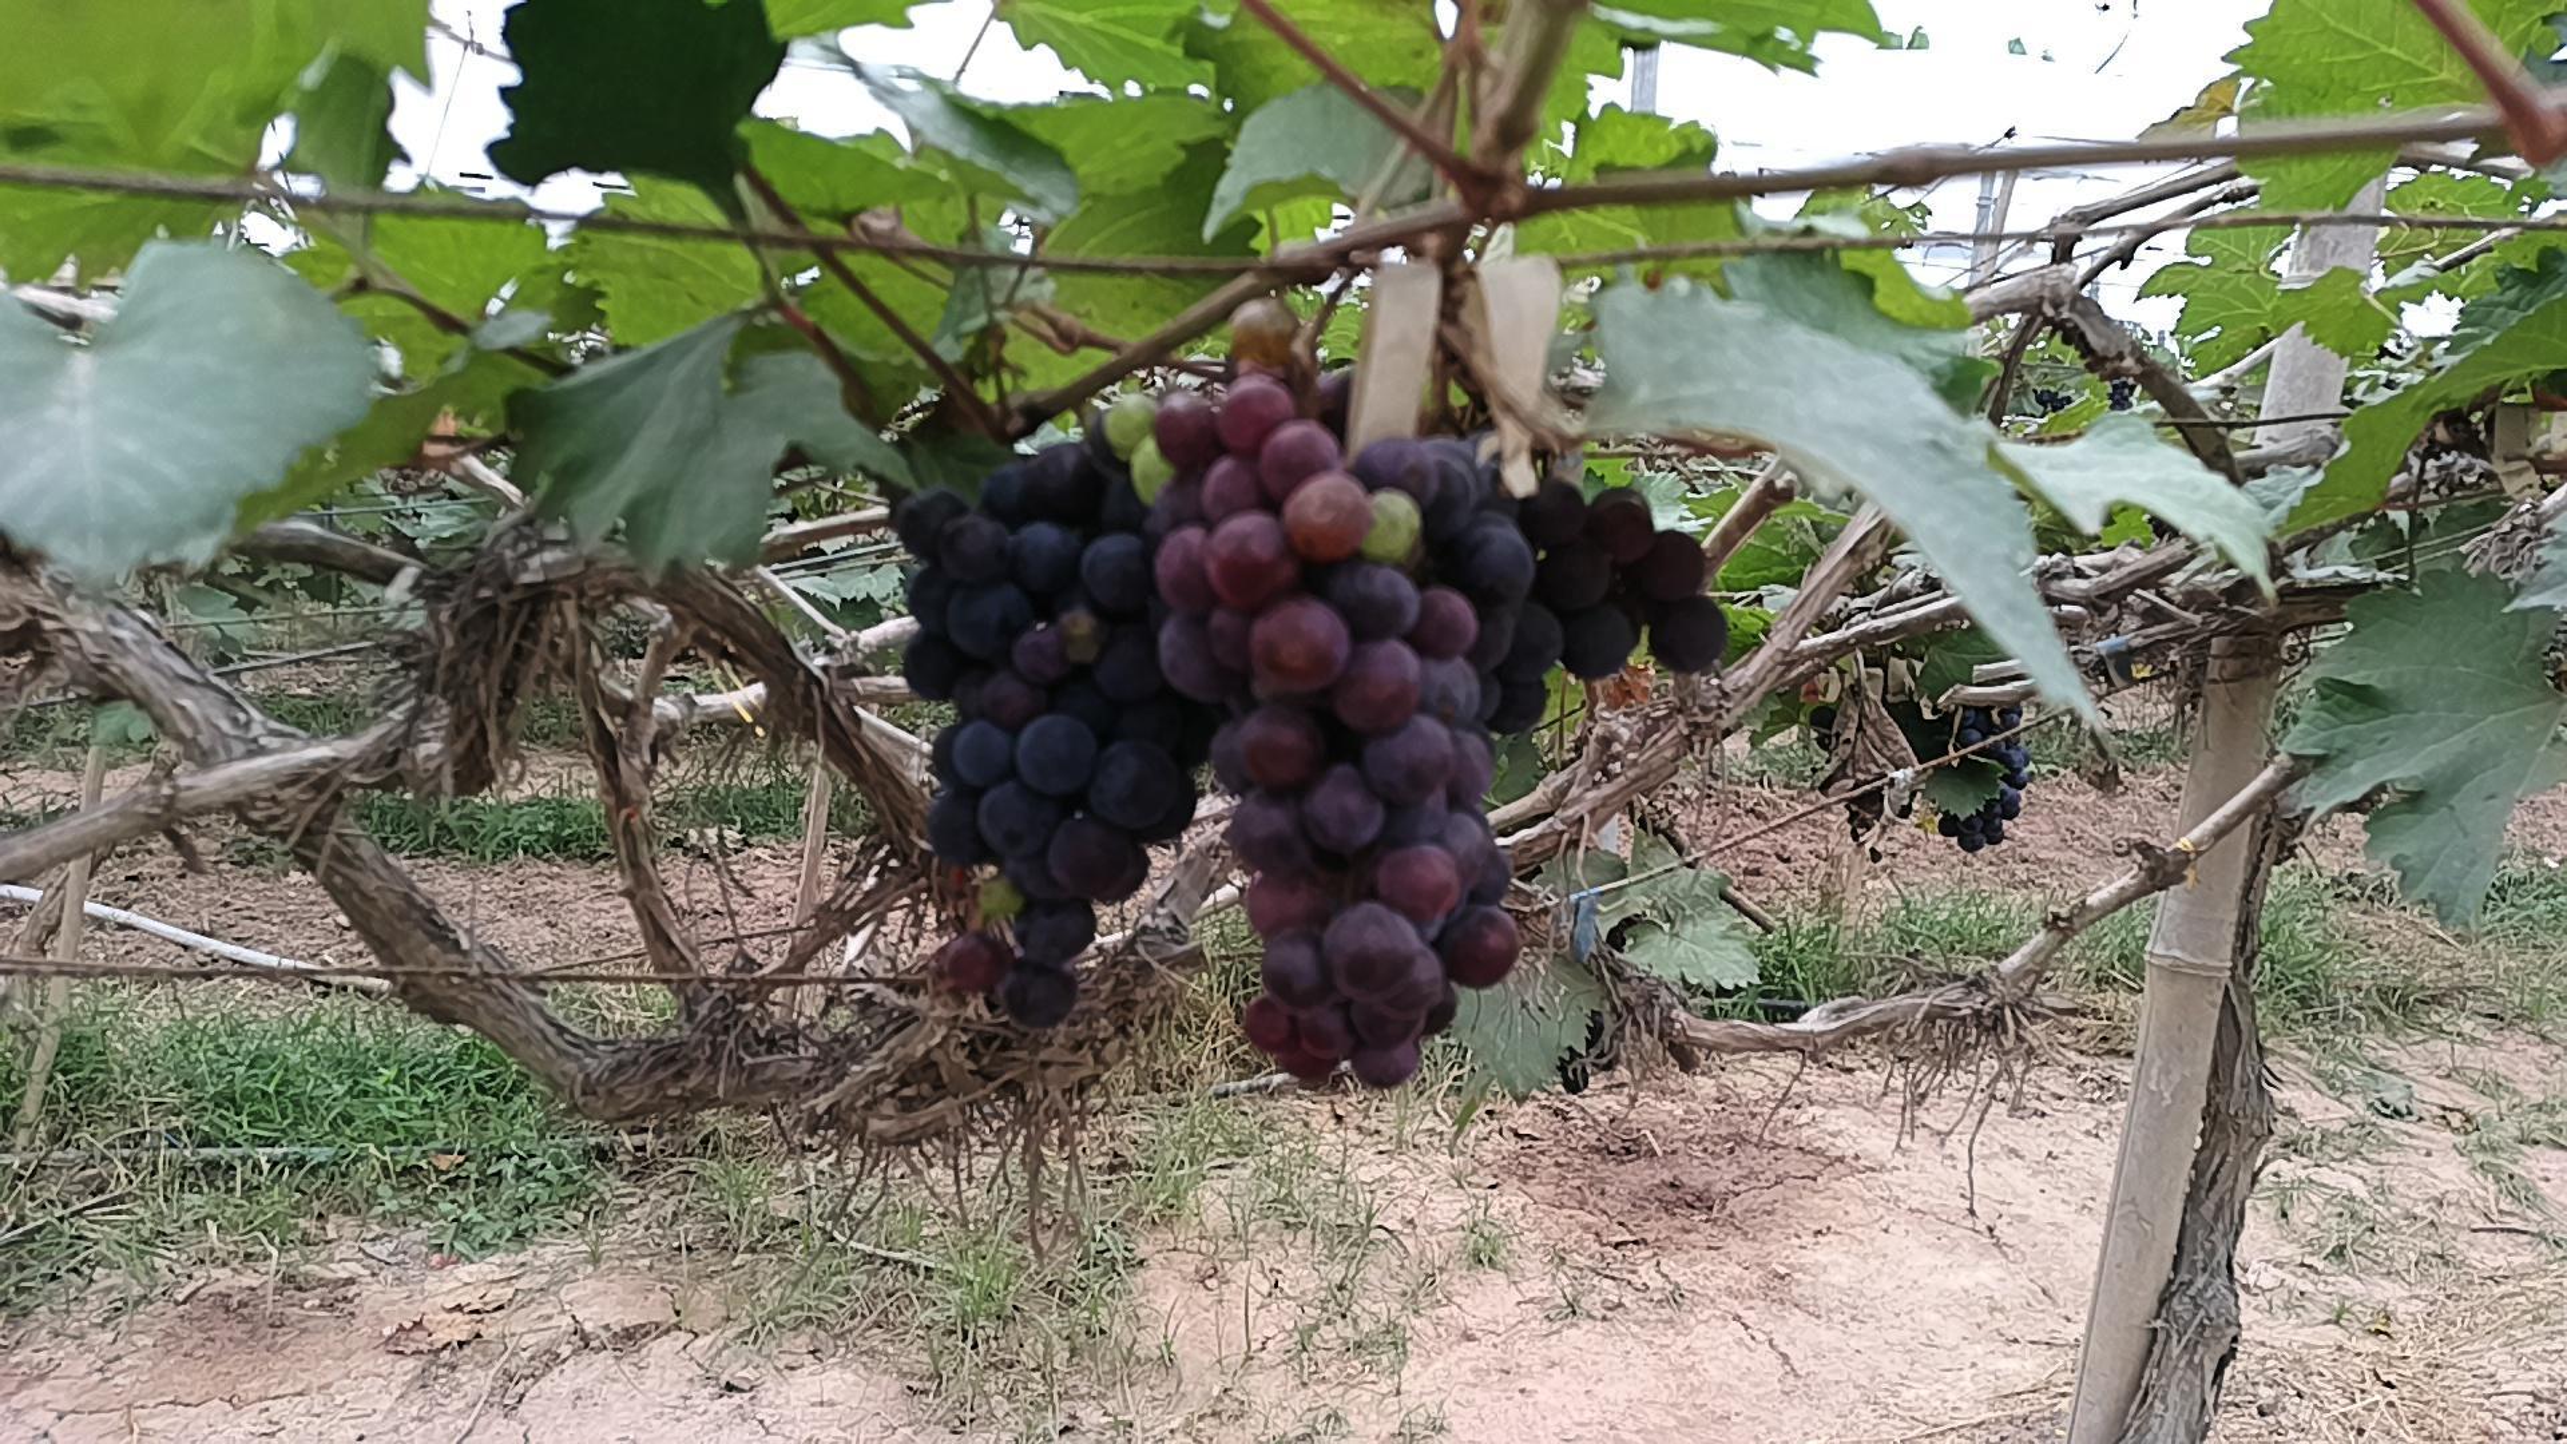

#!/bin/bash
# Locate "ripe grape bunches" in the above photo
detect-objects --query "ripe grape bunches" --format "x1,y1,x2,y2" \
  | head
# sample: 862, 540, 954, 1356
890, 431, 1222, 1023
1493, 475, 1721, 726
1939, 707, 2032, 853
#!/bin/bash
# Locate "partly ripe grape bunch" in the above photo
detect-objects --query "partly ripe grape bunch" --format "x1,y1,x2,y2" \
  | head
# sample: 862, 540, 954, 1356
1104, 295, 1534, 1087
